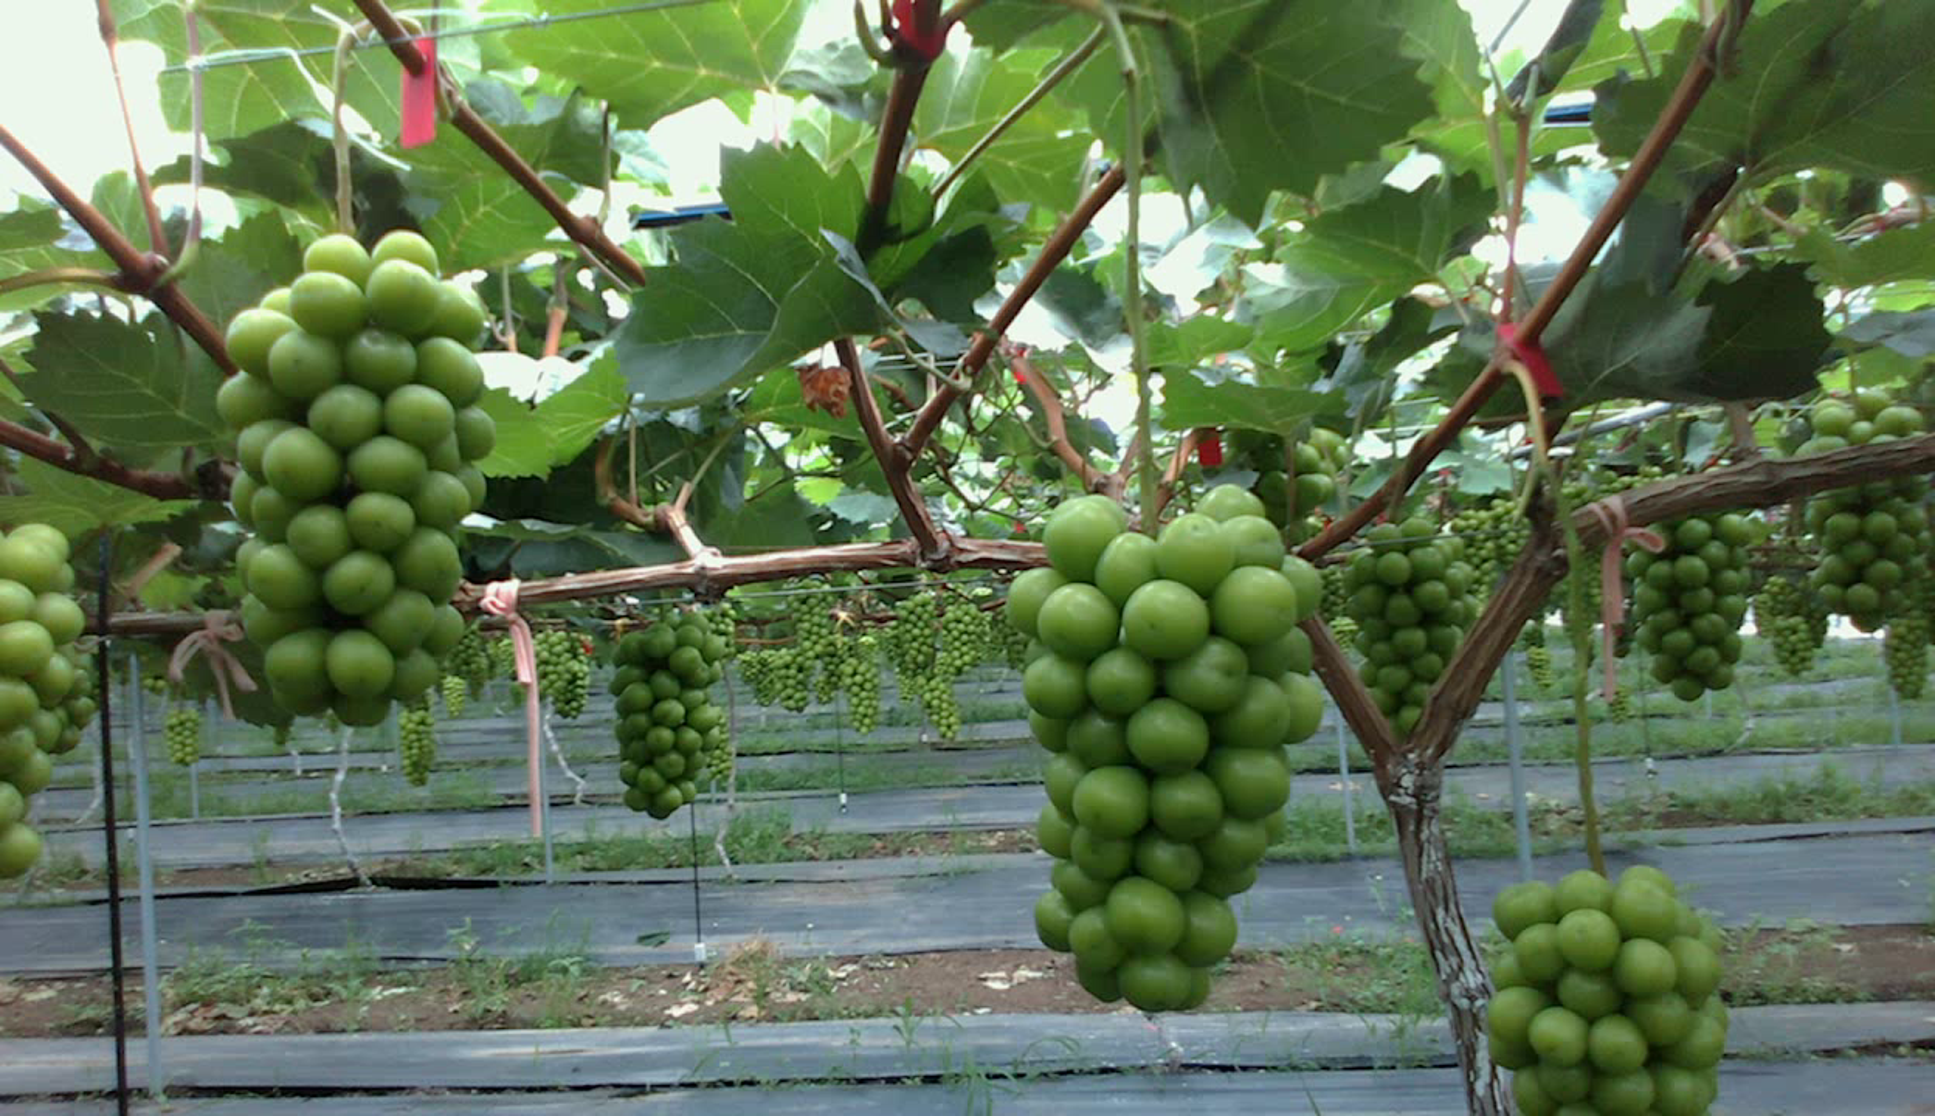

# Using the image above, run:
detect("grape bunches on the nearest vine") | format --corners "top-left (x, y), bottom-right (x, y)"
top-left (1485, 865), bottom-right (1730, 1114)
top-left (1008, 484), bottom-right (1324, 1014)
top-left (212, 228), bottom-right (499, 727)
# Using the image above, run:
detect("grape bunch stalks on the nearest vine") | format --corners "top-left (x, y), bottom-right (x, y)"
top-left (1095, 3), bottom-right (1157, 539)
top-left (1501, 360), bottom-right (1609, 879)
top-left (330, 20), bottom-right (372, 237)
